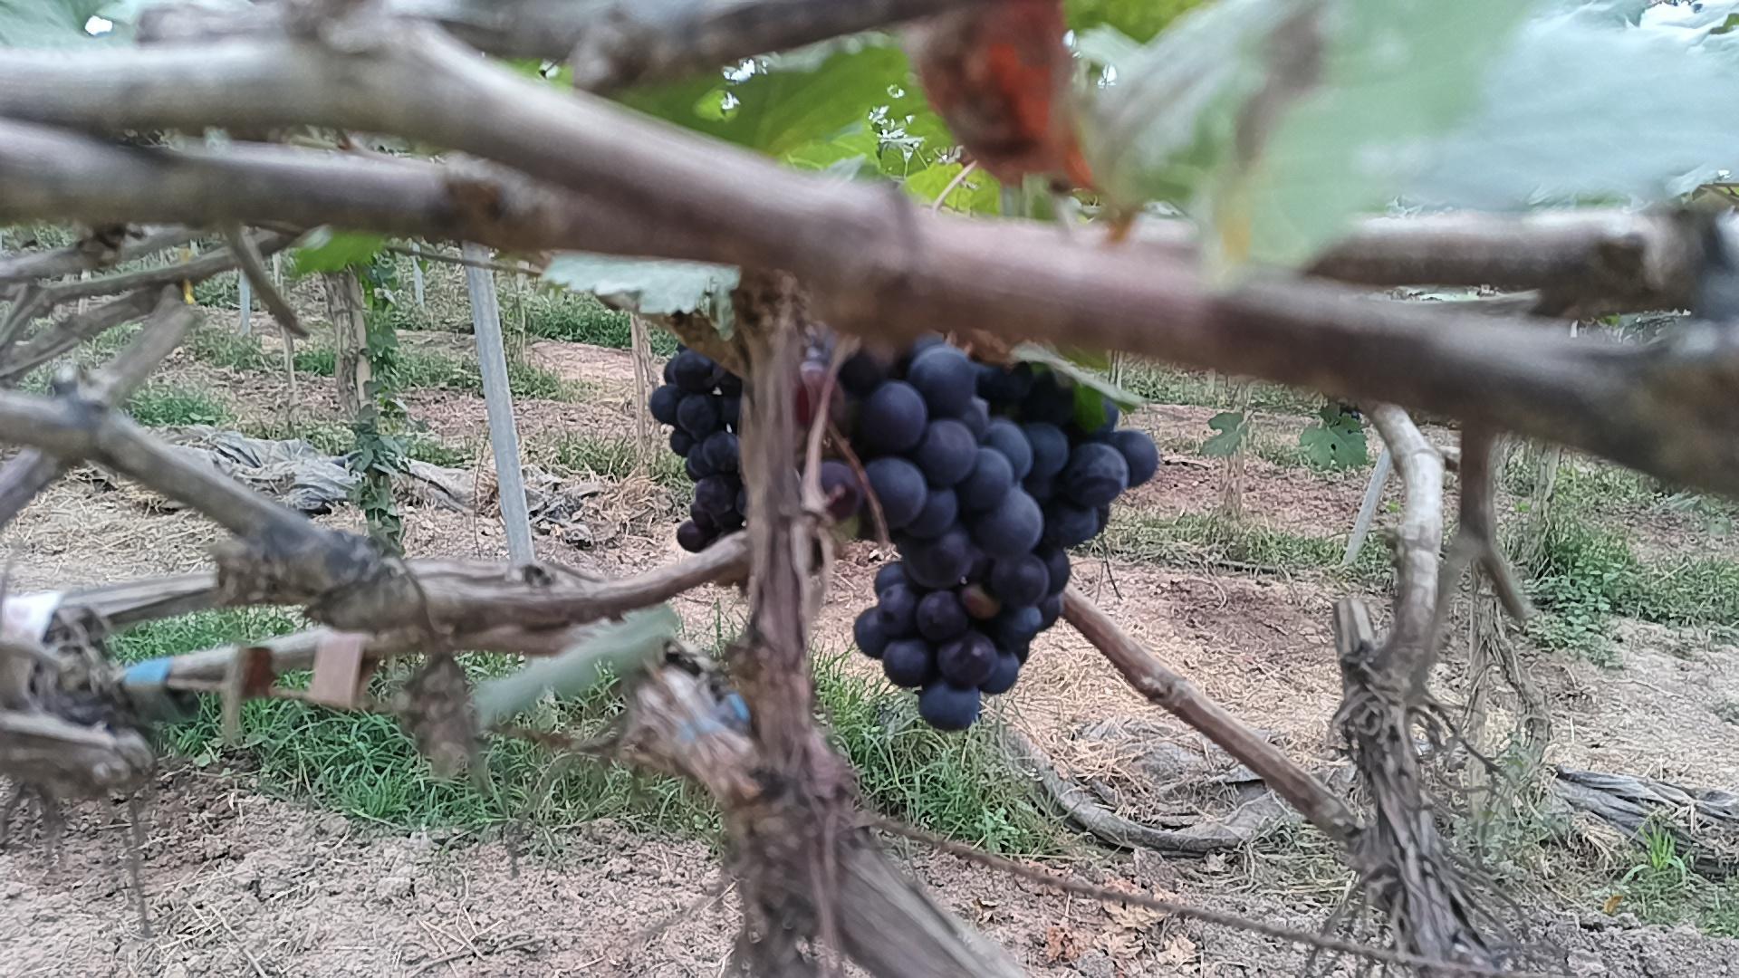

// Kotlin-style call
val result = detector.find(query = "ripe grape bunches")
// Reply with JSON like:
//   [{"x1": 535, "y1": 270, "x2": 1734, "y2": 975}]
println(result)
[
  {"x1": 649, "y1": 347, "x2": 745, "y2": 551},
  {"x1": 795, "y1": 336, "x2": 1158, "y2": 730}
]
